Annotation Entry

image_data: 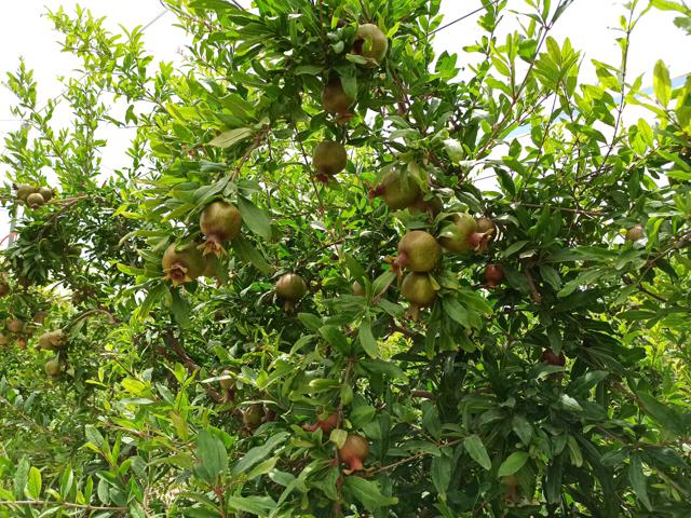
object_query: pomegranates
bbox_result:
[276,273,307,313]
[301,414,338,435]
[44,359,59,376]
[360,22,389,69]
[0,280,9,296]
[15,185,36,201]
[242,405,261,431]
[626,224,645,242]
[476,217,496,234]
[49,329,70,349]
[320,80,356,121]
[25,192,45,208]
[338,434,375,475]
[399,272,436,323]
[16,337,28,350]
[199,201,243,260]
[539,349,566,366]
[0,335,10,346]
[33,332,54,354]
[161,242,207,289]
[202,257,221,287]
[6,318,24,332]
[381,230,443,278]
[33,311,49,323]
[441,212,496,250]
[312,139,348,183]
[501,475,518,502]
[36,186,56,203]
[365,172,422,210]
[407,195,442,219]
[480,264,503,289]
[218,369,236,404]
